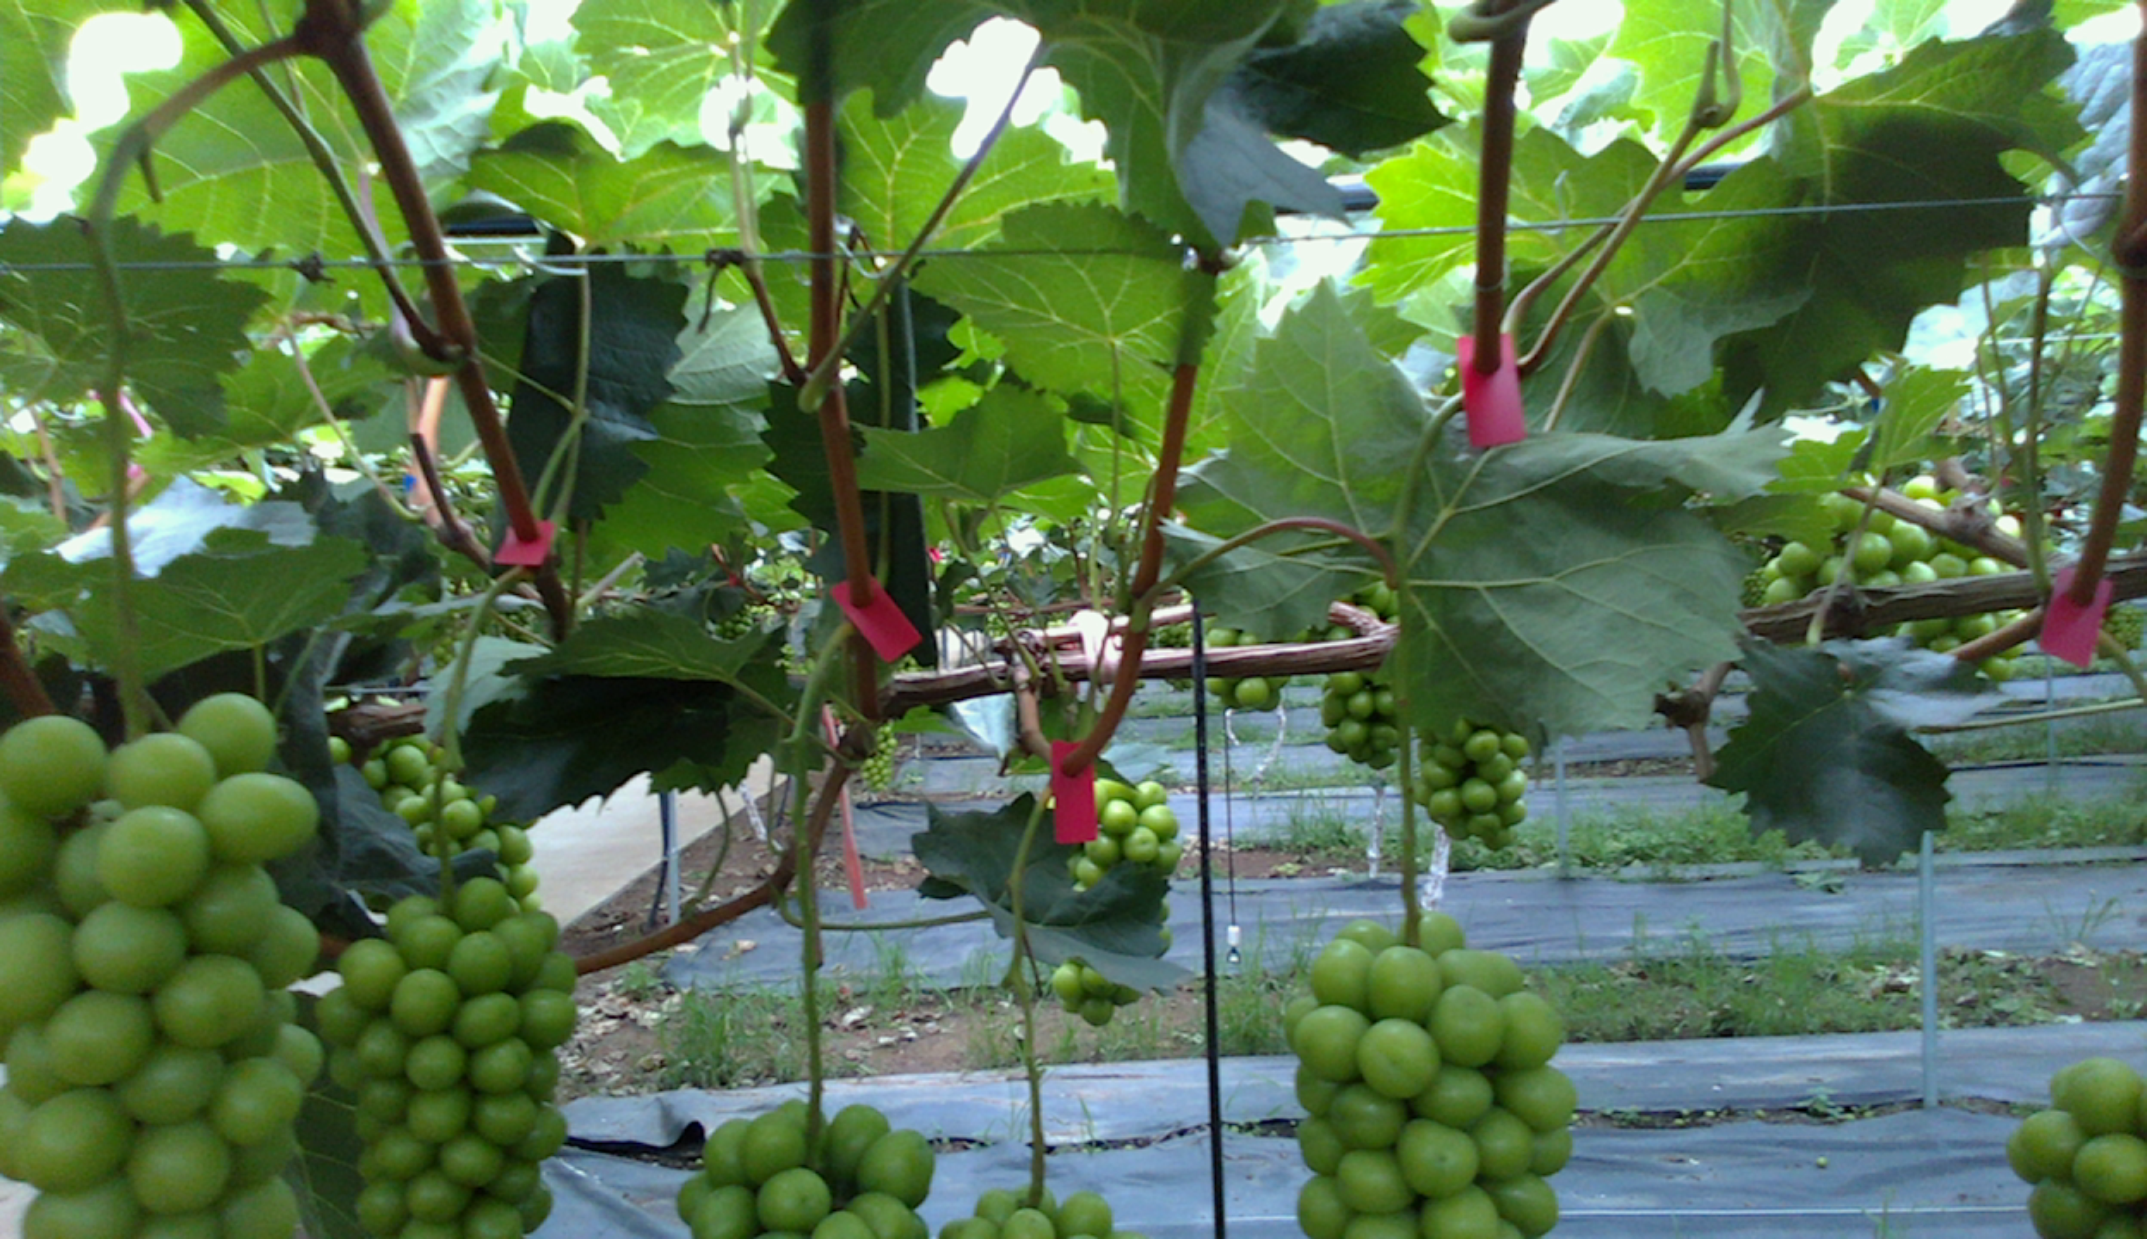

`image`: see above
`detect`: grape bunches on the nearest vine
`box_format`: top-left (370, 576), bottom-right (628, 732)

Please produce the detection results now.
top-left (1280, 915), bottom-right (1578, 1237)
top-left (0, 692), bottom-right (323, 1237)
top-left (676, 1105), bottom-right (936, 1237)
top-left (941, 1193), bottom-right (1120, 1237)
top-left (313, 878), bottom-right (580, 1237)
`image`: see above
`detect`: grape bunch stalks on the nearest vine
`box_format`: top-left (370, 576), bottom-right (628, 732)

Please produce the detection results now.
top-left (1003, 795), bottom-right (1046, 1205)
top-left (427, 566), bottom-right (516, 898)
top-left (790, 632), bottom-right (836, 1167)
top-left (1388, 392), bottom-right (1457, 948)
top-left (79, 45), bottom-right (253, 738)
